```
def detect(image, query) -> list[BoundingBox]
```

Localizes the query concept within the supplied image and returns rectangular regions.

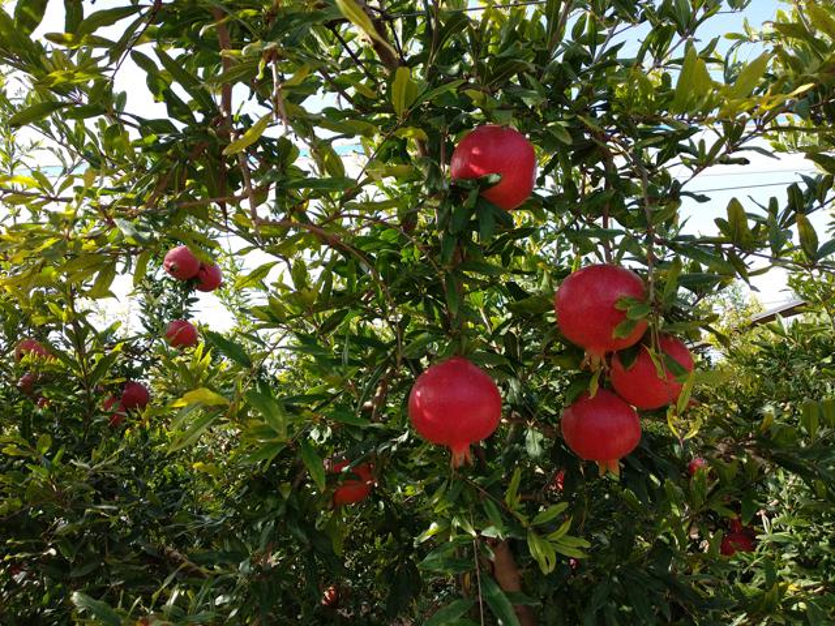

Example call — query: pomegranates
[16,373,38,395]
[16,339,47,361]
[196,261,222,292]
[166,320,197,347]
[611,333,693,411]
[408,356,504,467]
[719,520,757,556]
[121,381,150,408]
[103,396,127,428]
[37,396,48,407]
[554,263,648,373]
[689,458,705,476]
[333,459,374,502]
[163,245,201,280]
[561,387,643,479]
[450,125,536,211]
